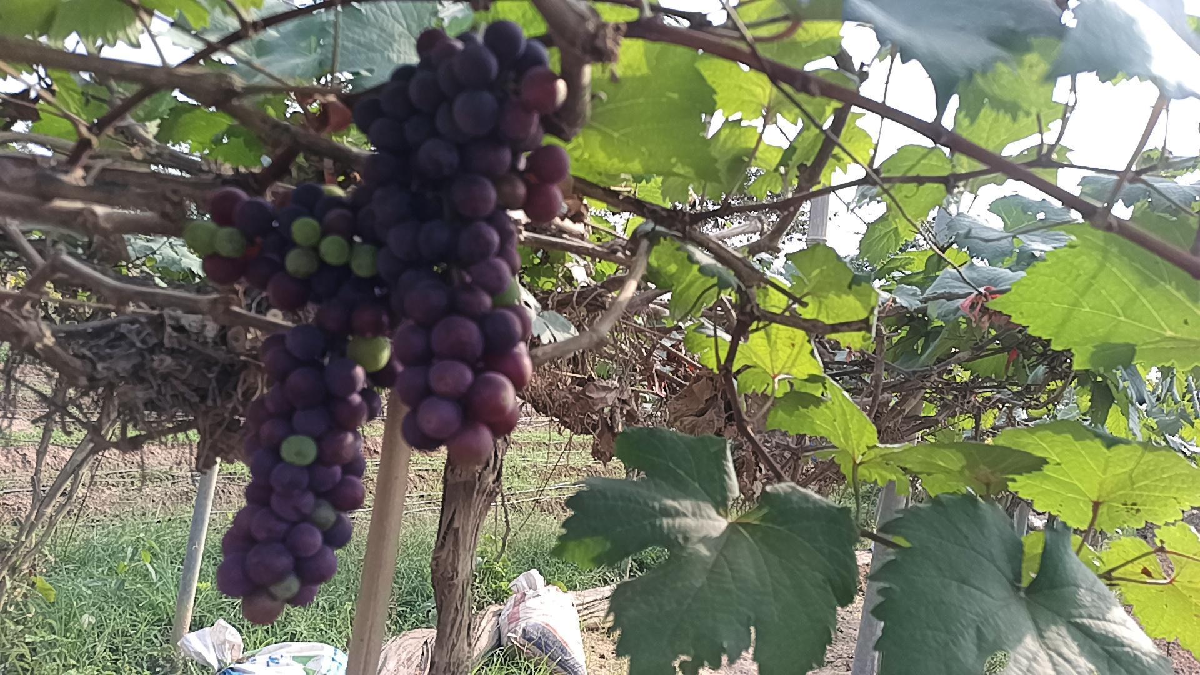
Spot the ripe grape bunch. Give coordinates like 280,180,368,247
353,20,571,466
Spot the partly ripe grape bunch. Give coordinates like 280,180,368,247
182,181,403,623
